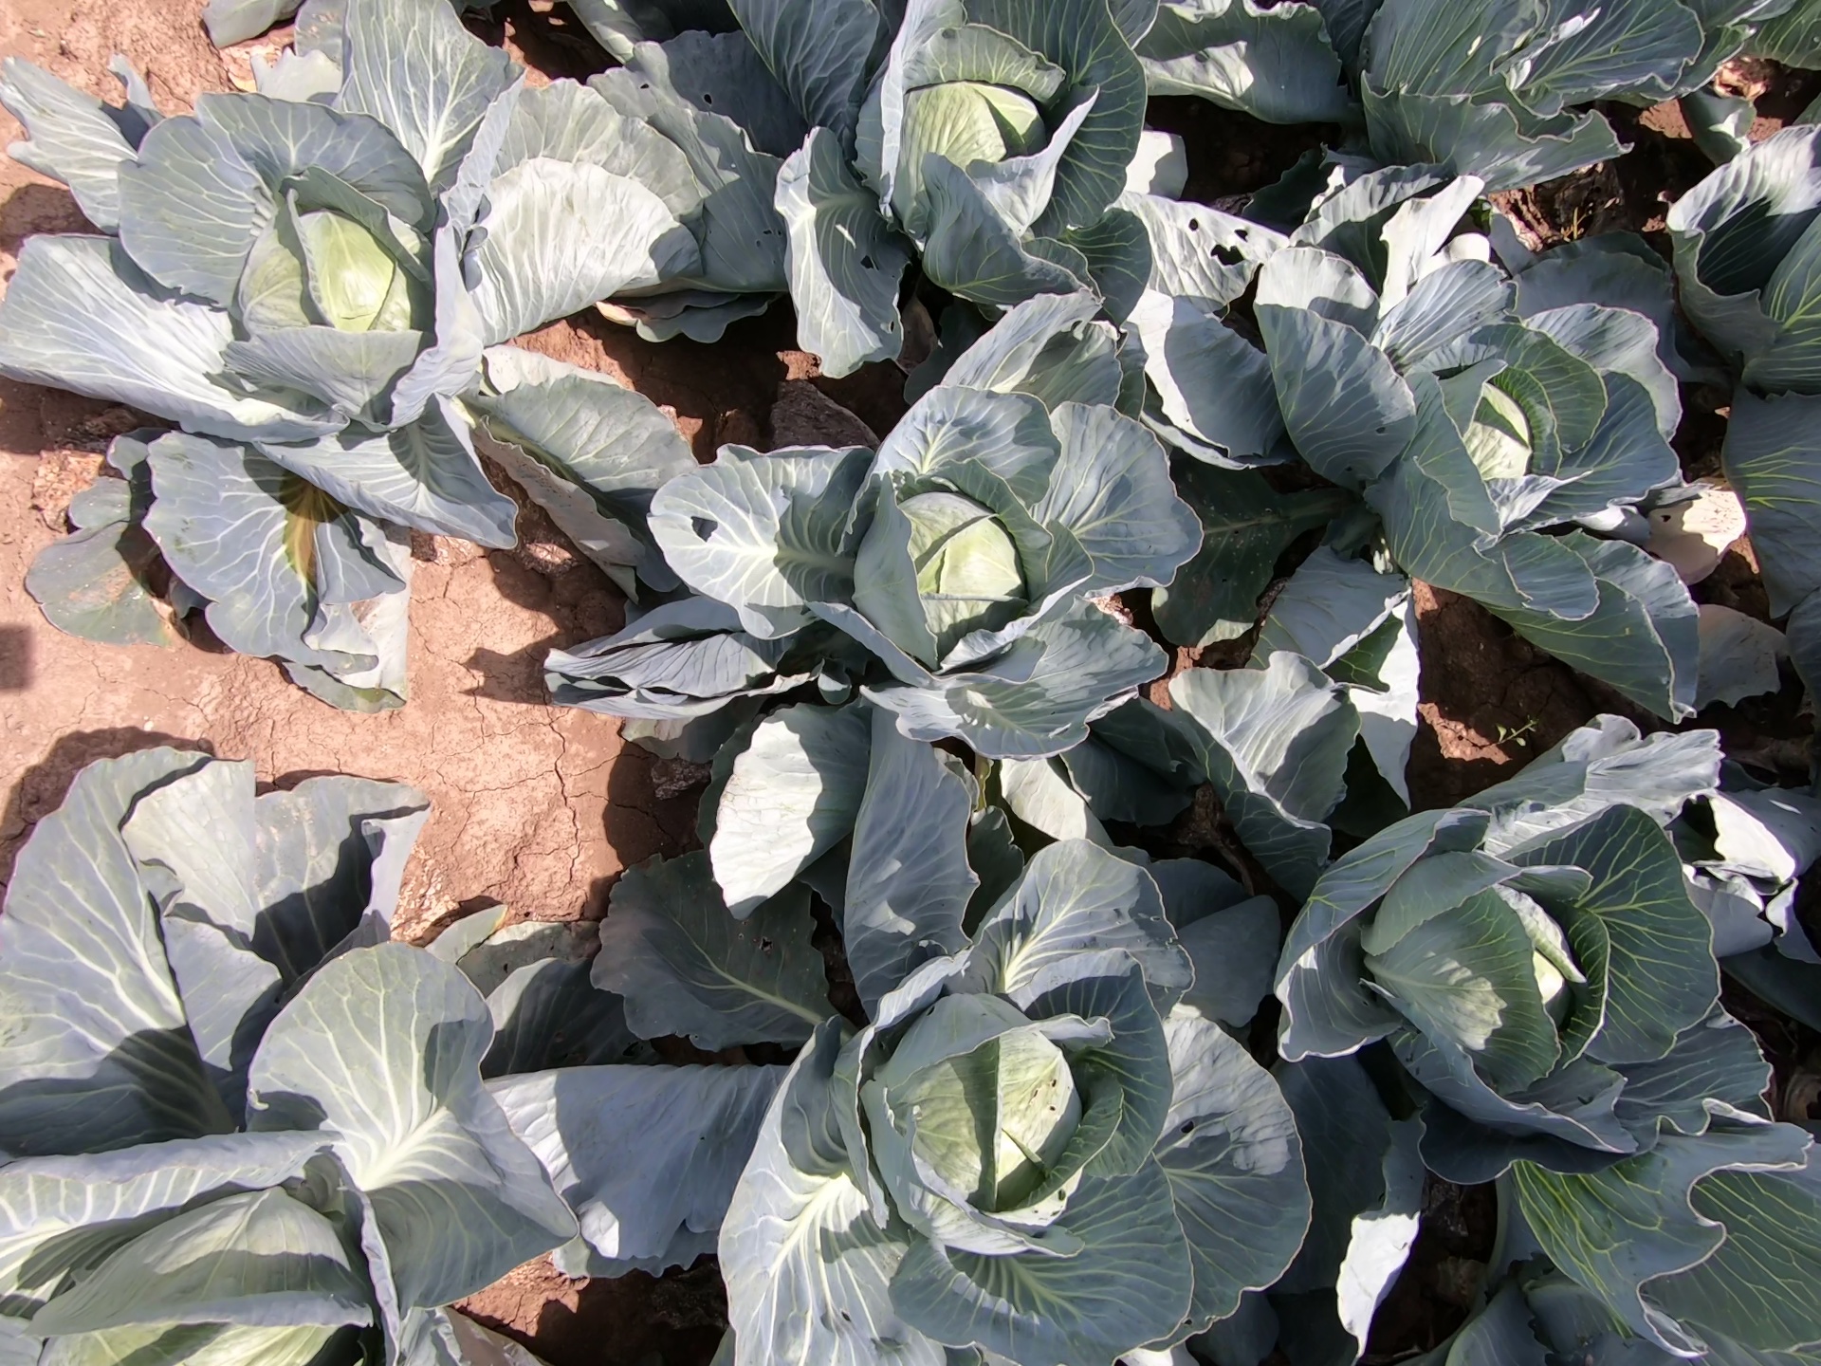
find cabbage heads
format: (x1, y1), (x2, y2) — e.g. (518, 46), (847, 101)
(35, 1183), (353, 1364)
(865, 50), (1051, 231)
(1378, 872), (1574, 1082)
(237, 212), (448, 392)
(857, 491), (1027, 659)
(884, 1012), (1082, 1247)
(1400, 375), (1539, 532)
